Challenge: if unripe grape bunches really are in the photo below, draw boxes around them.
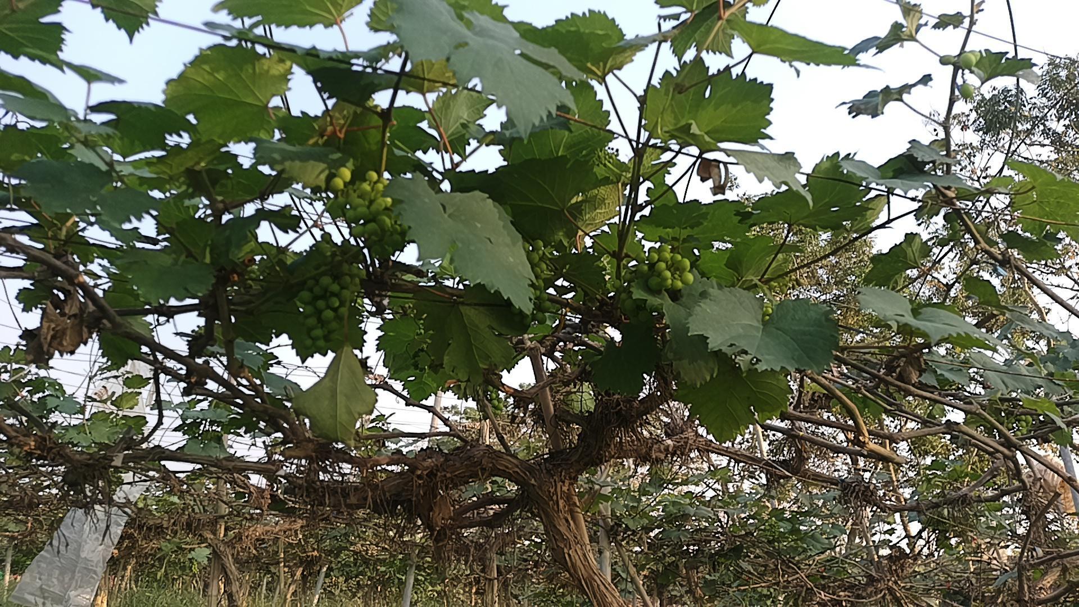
[510,241,551,324]
[328,167,406,257]
[614,244,694,331]
[759,277,790,321]
[296,233,362,356]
